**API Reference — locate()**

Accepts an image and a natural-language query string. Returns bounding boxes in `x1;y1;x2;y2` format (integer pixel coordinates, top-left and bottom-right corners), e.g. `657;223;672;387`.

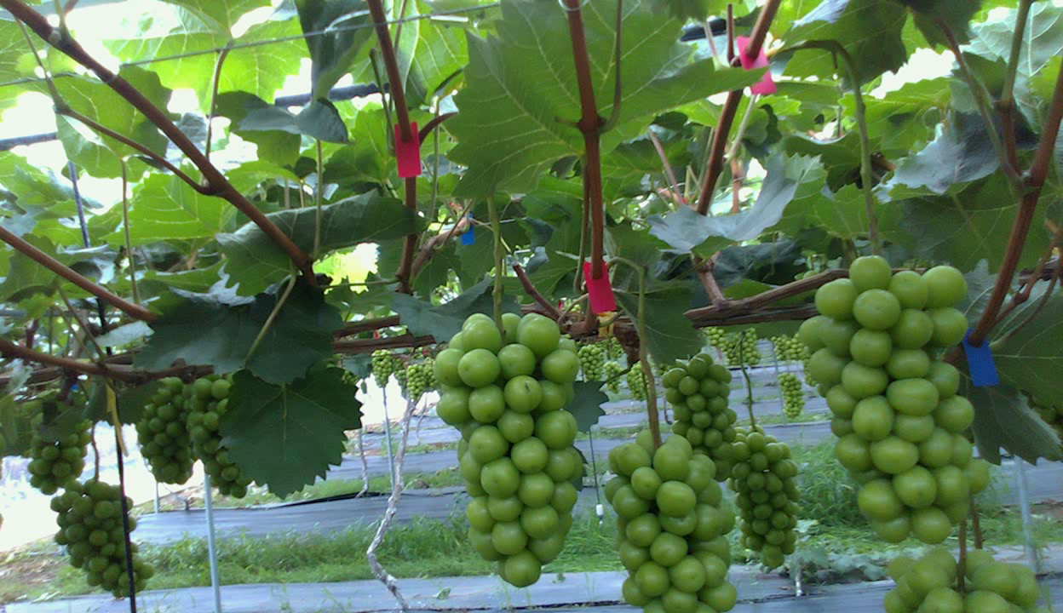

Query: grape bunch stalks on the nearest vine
957;524;968;592
781;37;880;252
487;202;505;335
609;256;659;448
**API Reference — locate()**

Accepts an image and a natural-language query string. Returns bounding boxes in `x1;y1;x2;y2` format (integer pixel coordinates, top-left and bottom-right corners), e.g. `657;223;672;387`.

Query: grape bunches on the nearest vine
603;429;734;611
799;255;990;545
883;547;1051;612
430;312;583;589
